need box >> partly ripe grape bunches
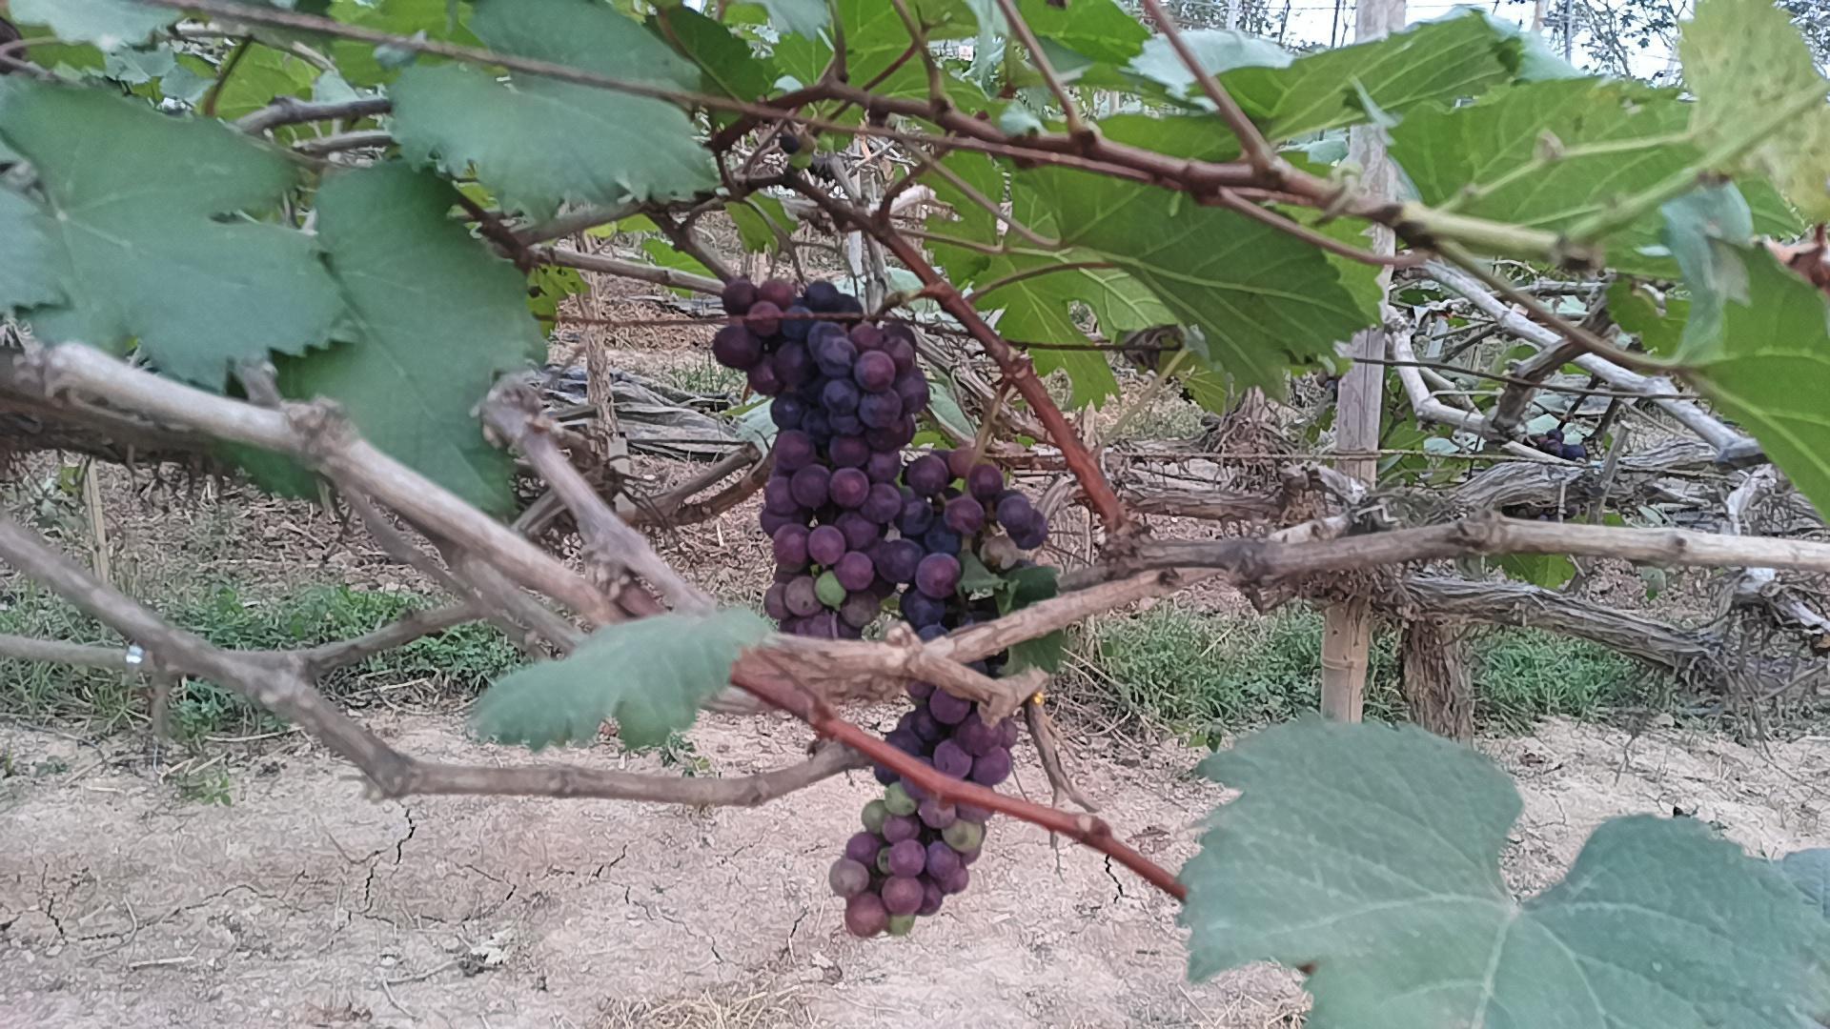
[713,276,933,638]
[829,446,1048,936]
